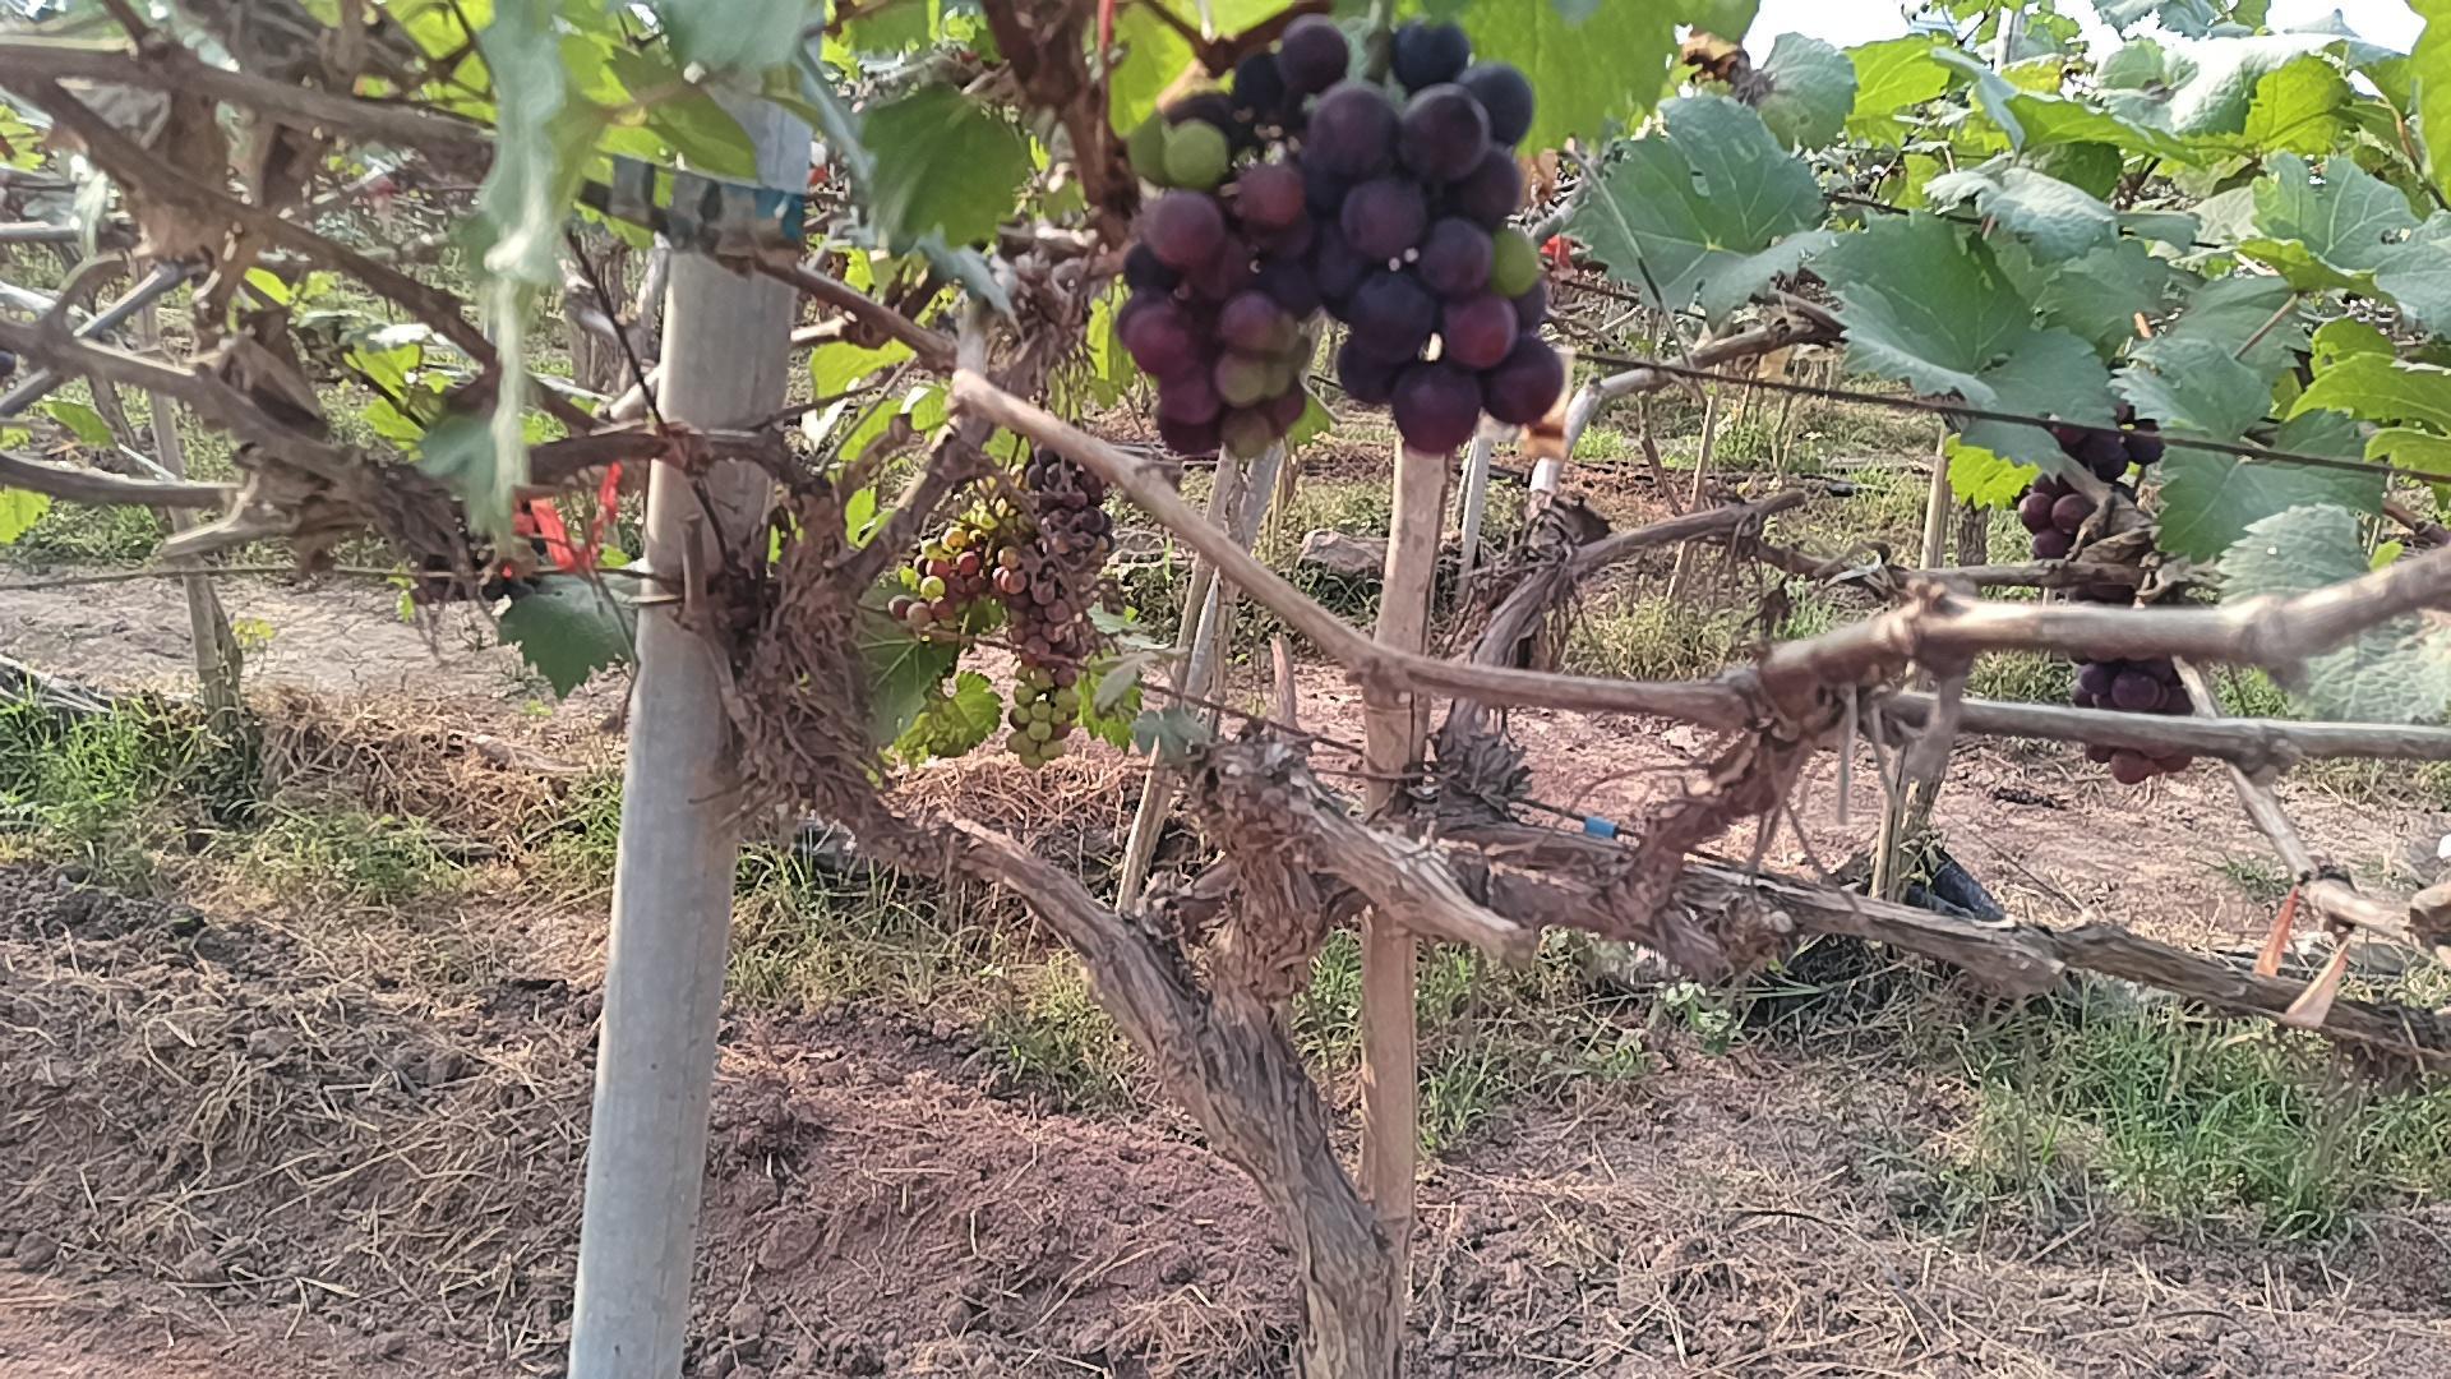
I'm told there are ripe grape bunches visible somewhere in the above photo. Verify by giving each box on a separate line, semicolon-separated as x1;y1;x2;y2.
2053;406;2164;483
2071;659;2194;787
2016;474;2095;559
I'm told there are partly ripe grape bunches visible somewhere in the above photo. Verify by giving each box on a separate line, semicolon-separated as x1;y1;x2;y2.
1117;11;1564;456
892;452;1112;766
